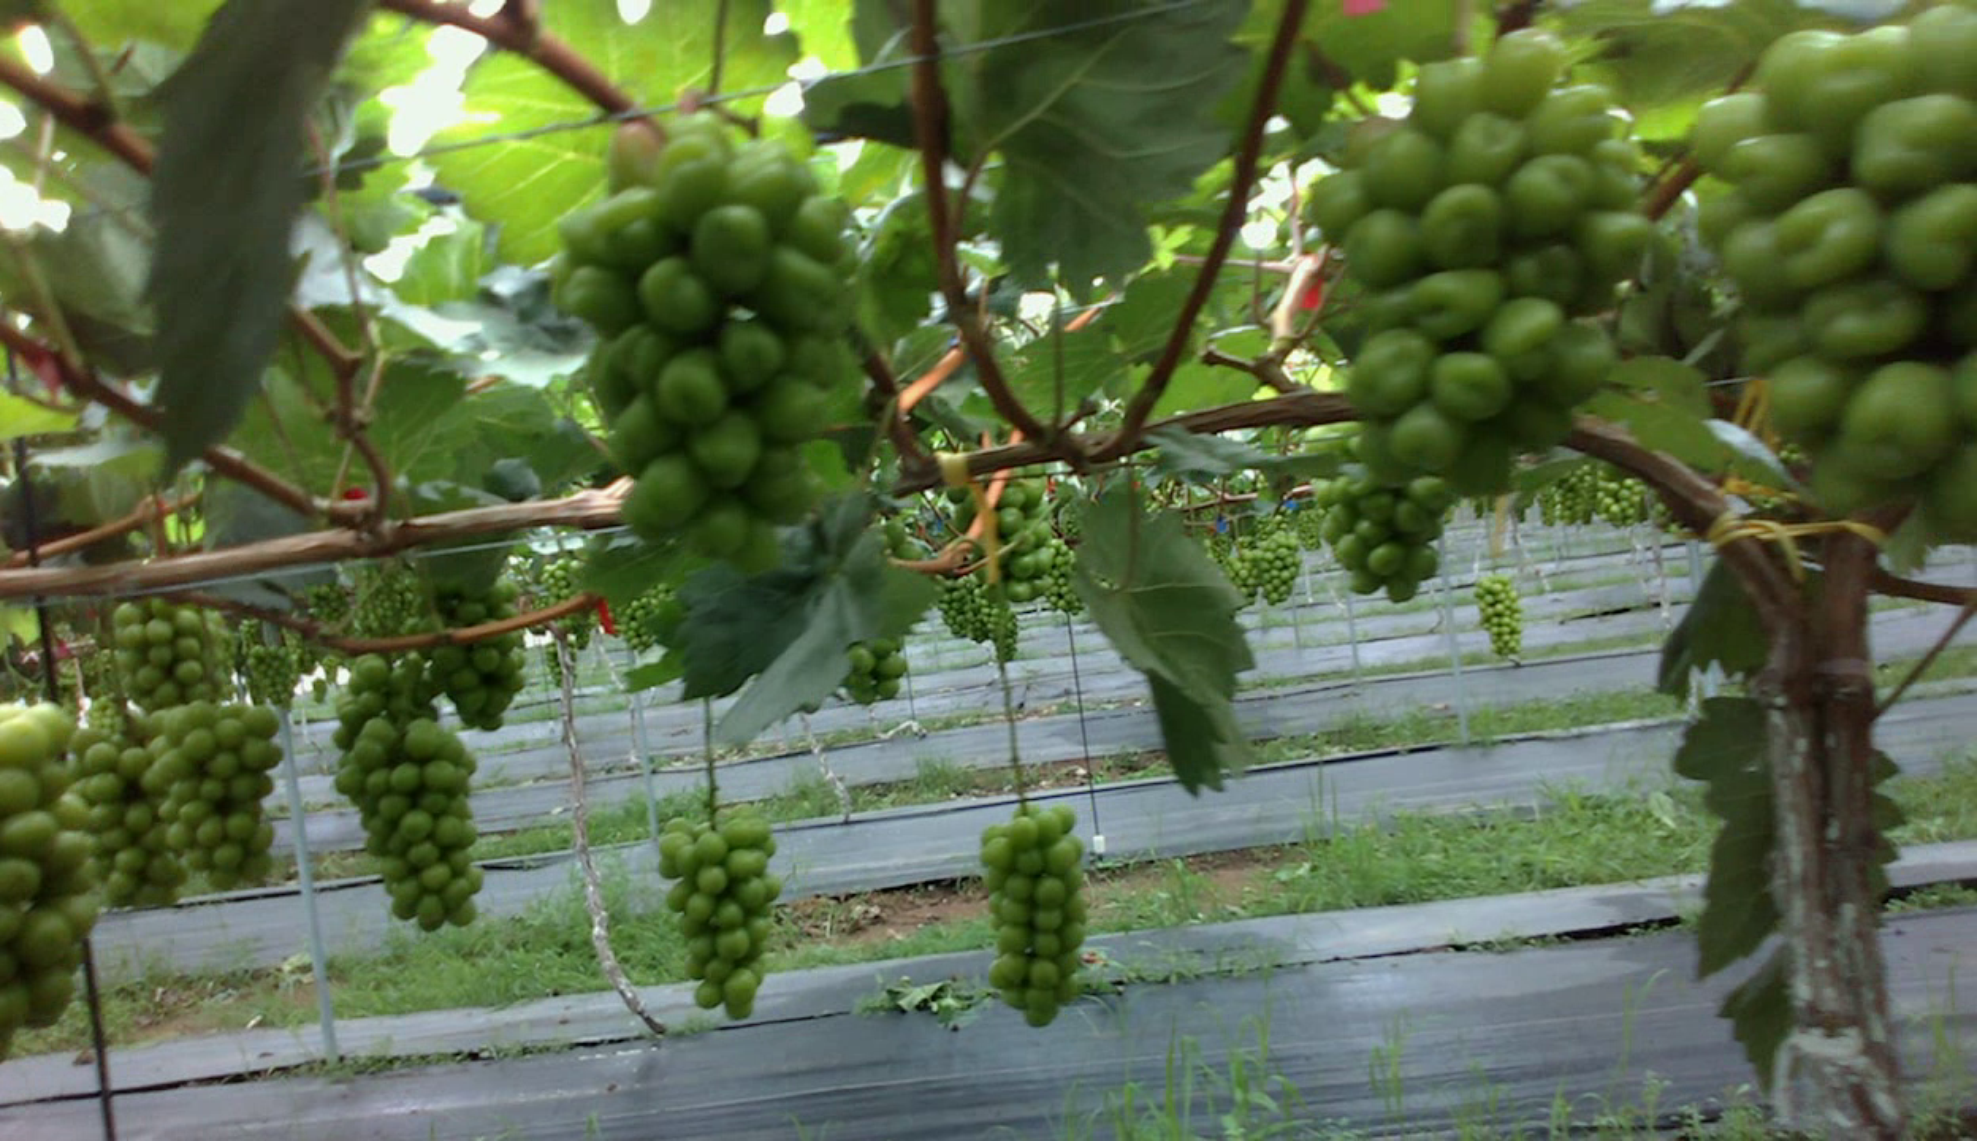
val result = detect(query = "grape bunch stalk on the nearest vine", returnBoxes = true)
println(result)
[1453,0,1473,54]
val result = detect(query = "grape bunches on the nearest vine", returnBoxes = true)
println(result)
[1310,24,1655,499]
[1686,2,1975,540]
[551,114,855,578]
[2,702,100,1038]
